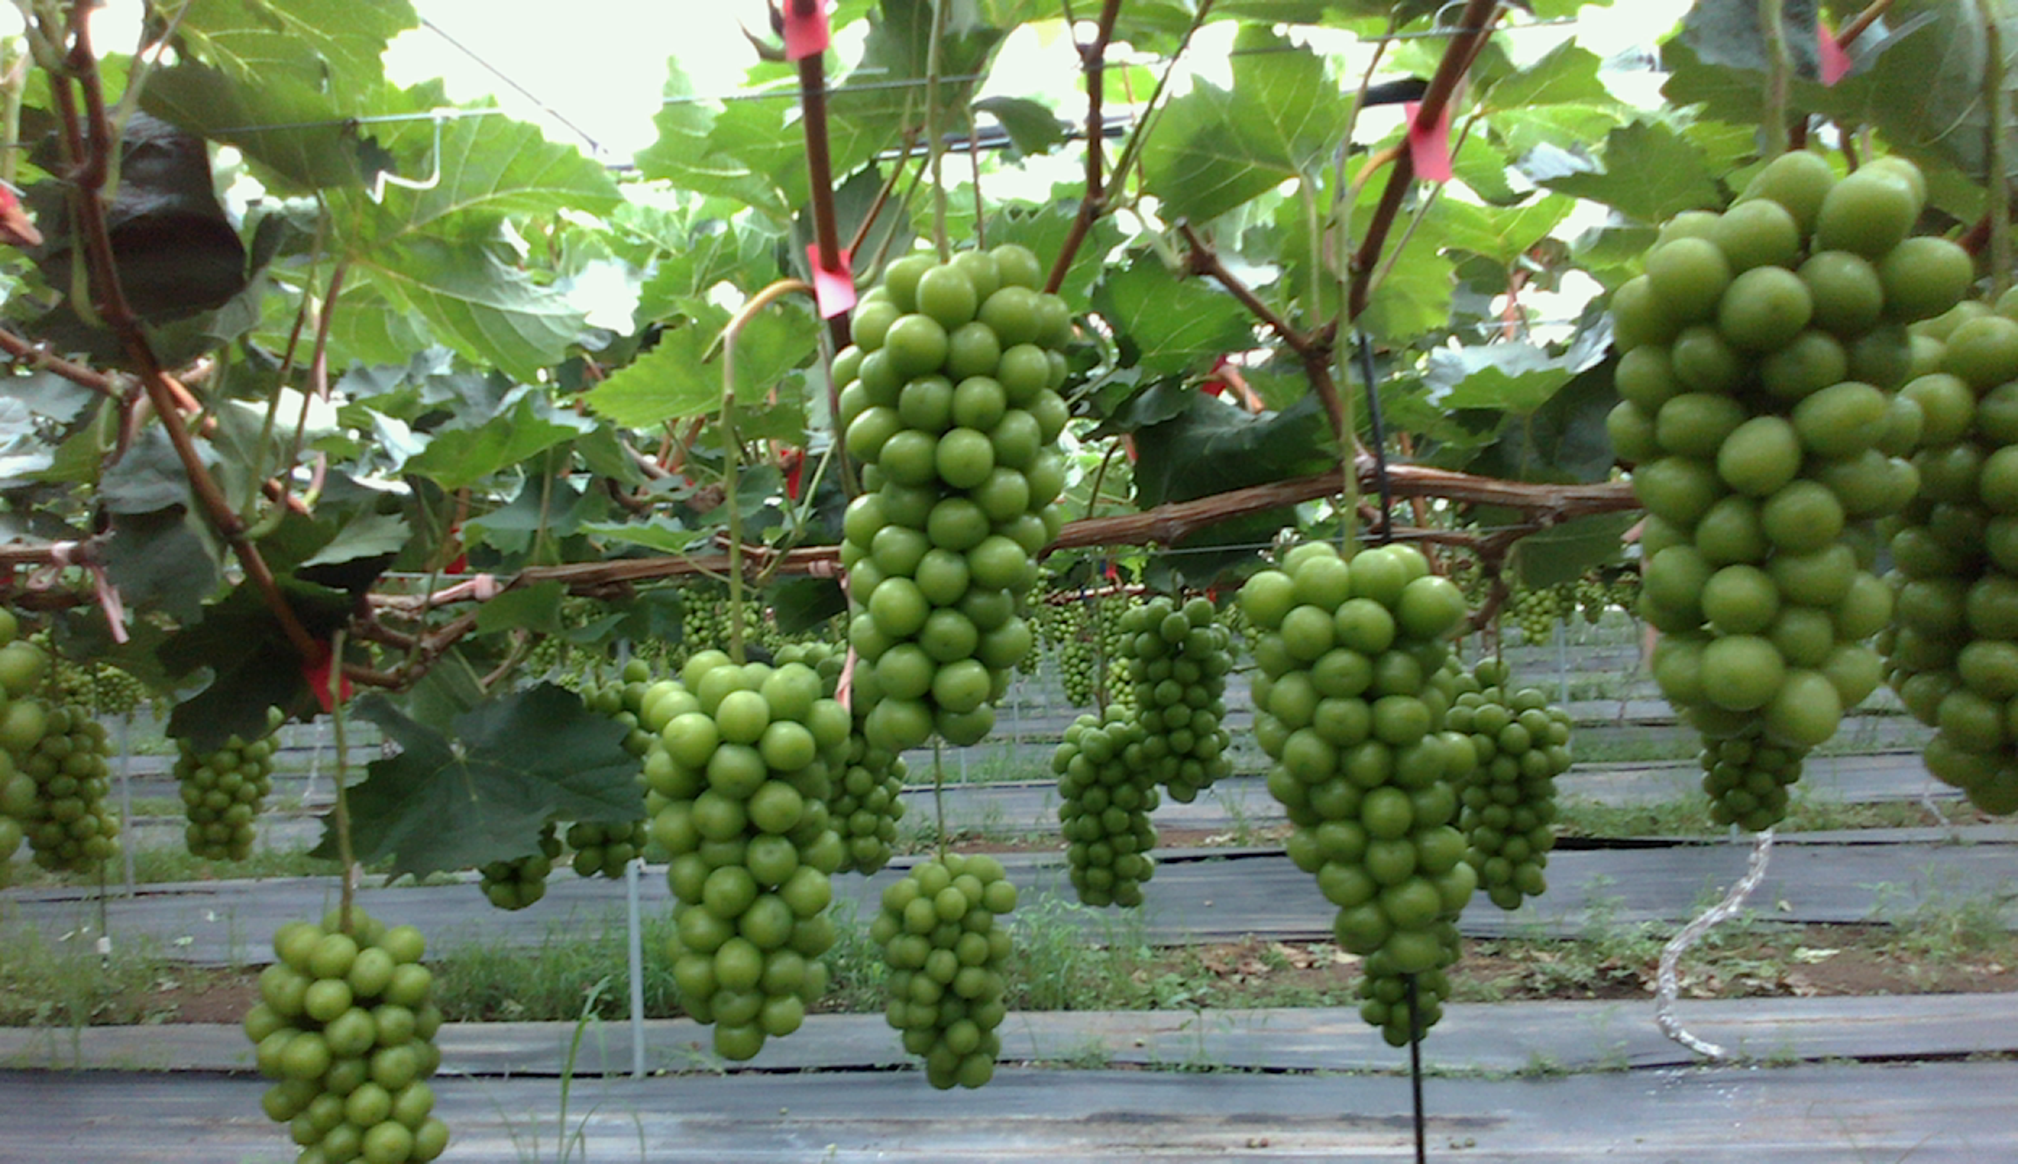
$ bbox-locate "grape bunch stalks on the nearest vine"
[327,627,353,933]
[1979,3,2008,294]
[711,278,815,664]
[1334,139,1405,559]
[1759,0,1795,168]
[925,0,948,262]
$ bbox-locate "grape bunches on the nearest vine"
[1868,291,2016,816]
[244,905,448,1162]
[642,650,851,1059]
[1239,540,1478,972]
[1606,149,1976,745]
[830,244,1070,752]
